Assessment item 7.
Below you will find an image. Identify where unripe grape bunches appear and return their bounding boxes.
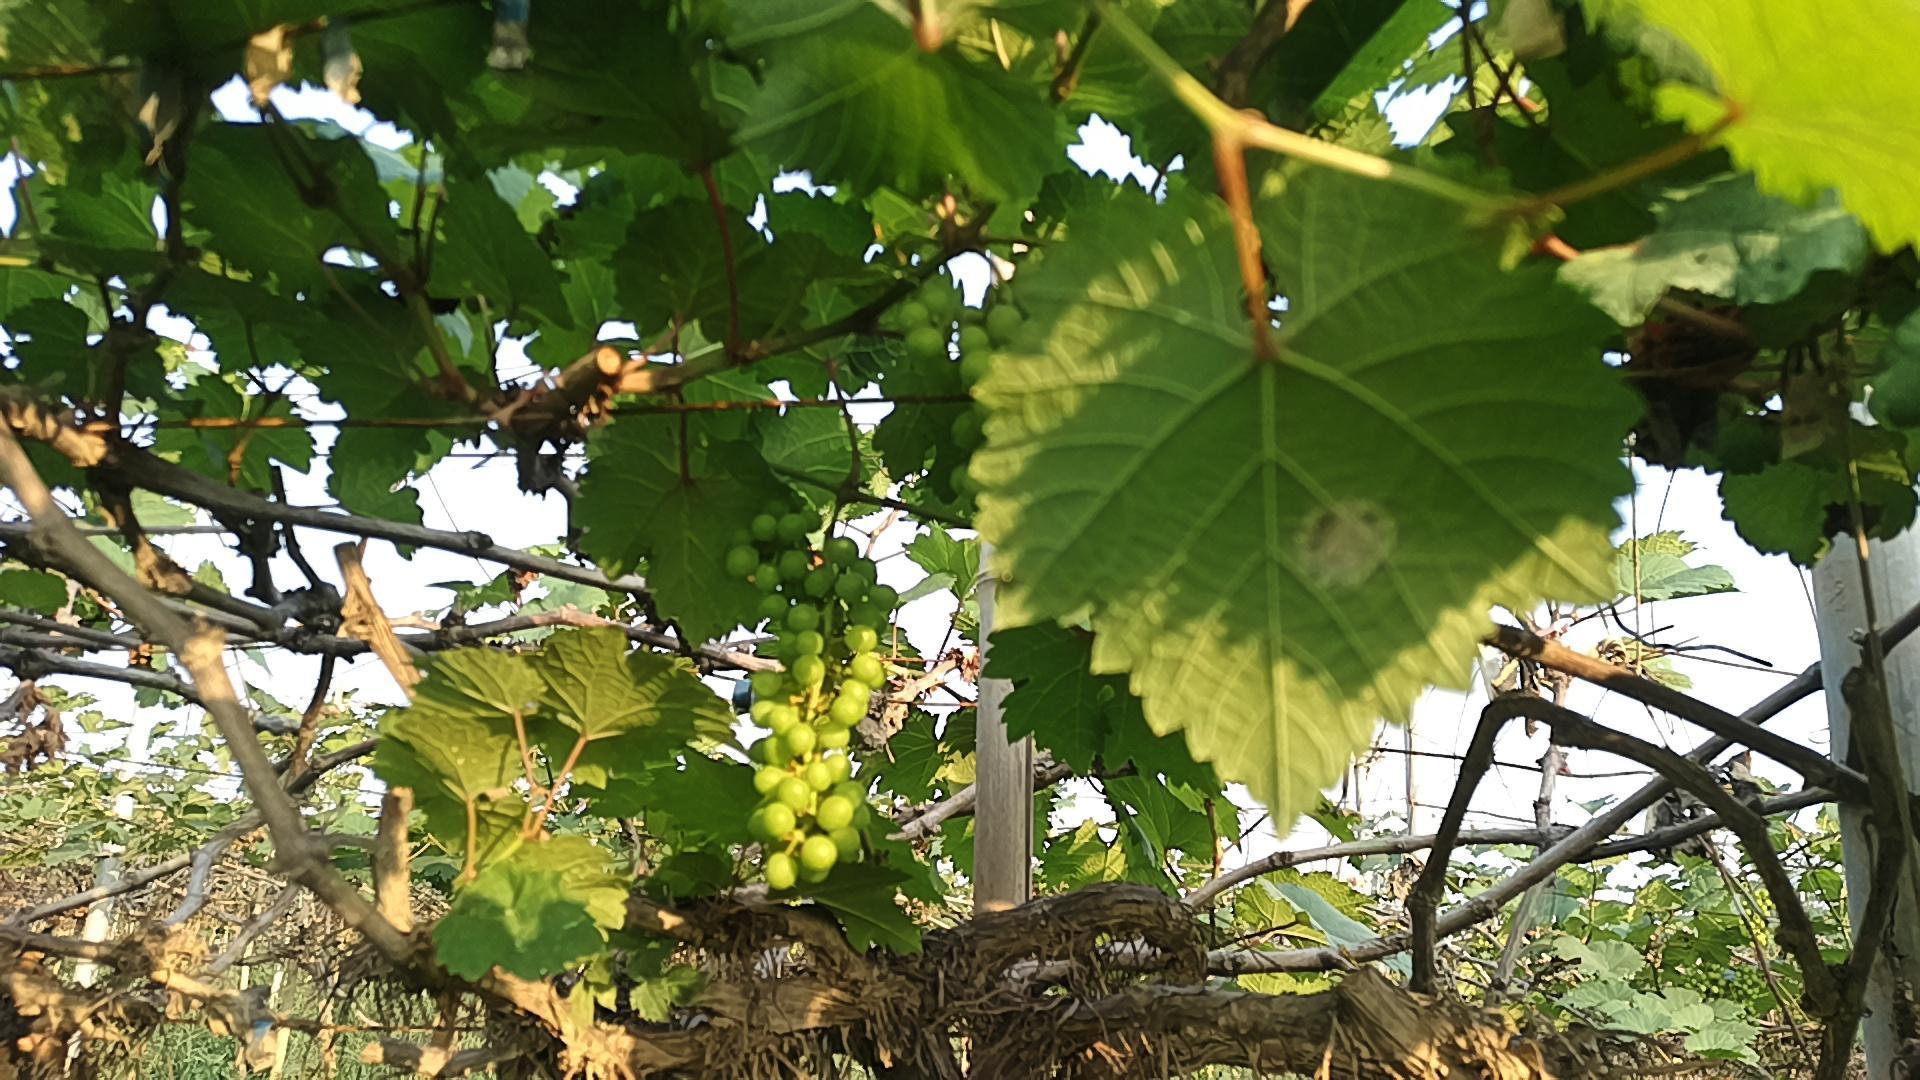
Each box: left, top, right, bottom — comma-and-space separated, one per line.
724, 499, 898, 890
896, 268, 1025, 498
